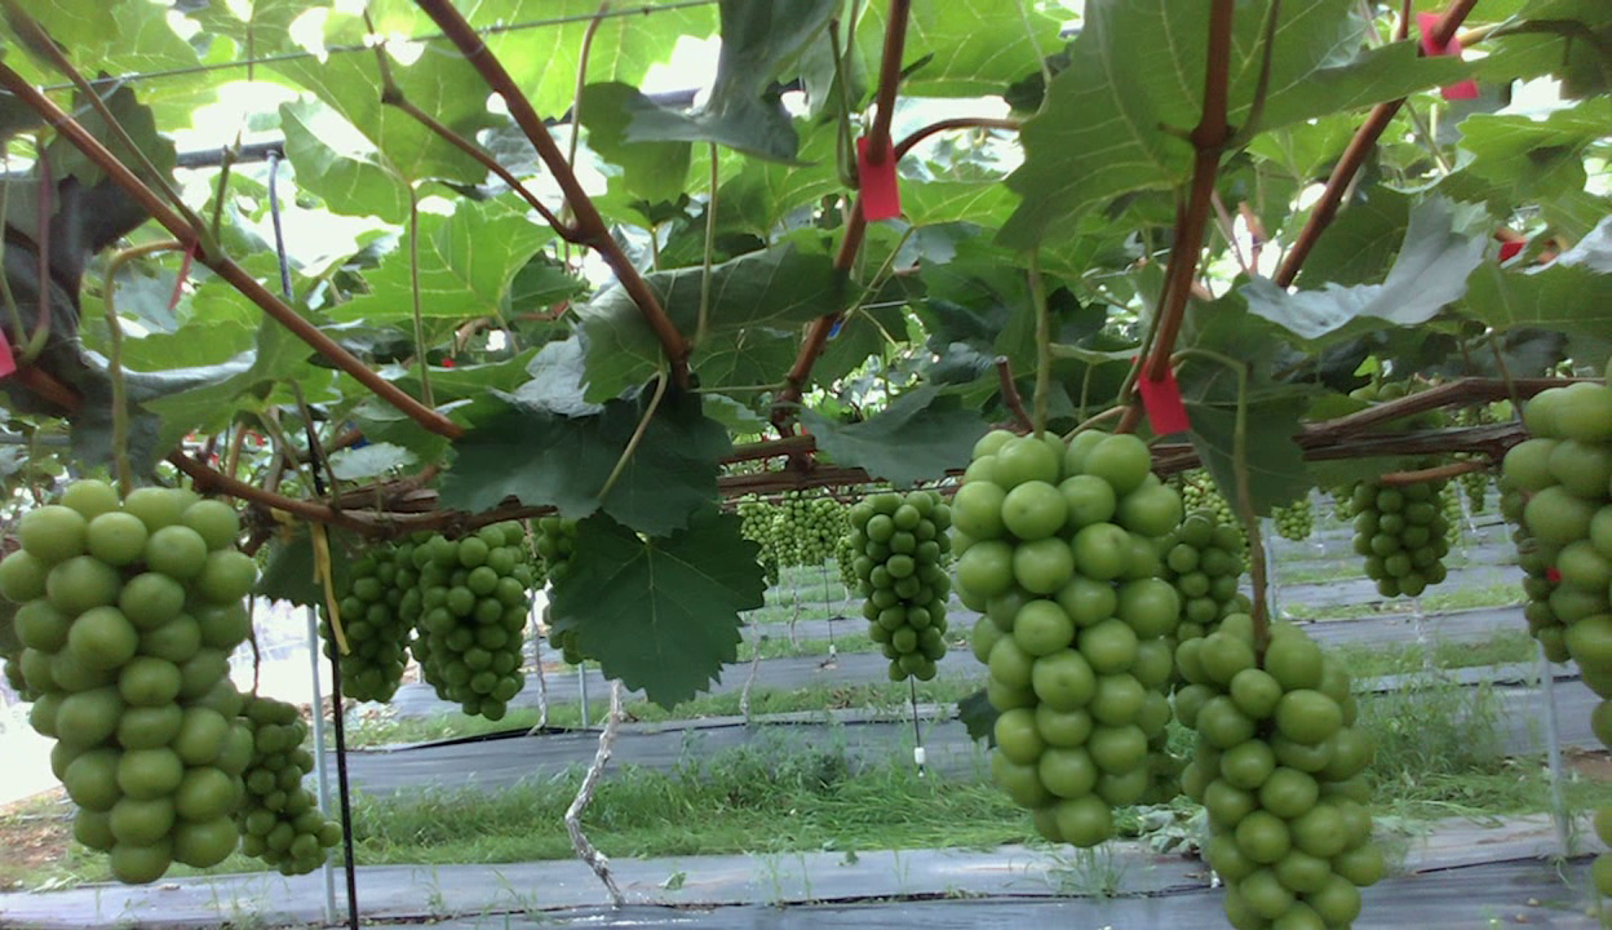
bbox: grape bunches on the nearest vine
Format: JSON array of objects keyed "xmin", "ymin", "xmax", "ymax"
[
  {"xmin": 3, "ymin": 474, "xmax": 260, "ymax": 887},
  {"xmin": 1174, "ymin": 615, "xmax": 1385, "ymax": 929},
  {"xmin": 951, "ymin": 429, "xmax": 1182, "ymax": 847}
]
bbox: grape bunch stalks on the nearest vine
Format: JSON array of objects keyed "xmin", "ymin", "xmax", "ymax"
[
  {"xmin": 1028, "ymin": 251, "xmax": 1050, "ymax": 435},
  {"xmin": 102, "ymin": 240, "xmax": 173, "ymax": 488},
  {"xmin": 1181, "ymin": 346, "xmax": 1267, "ymax": 666}
]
